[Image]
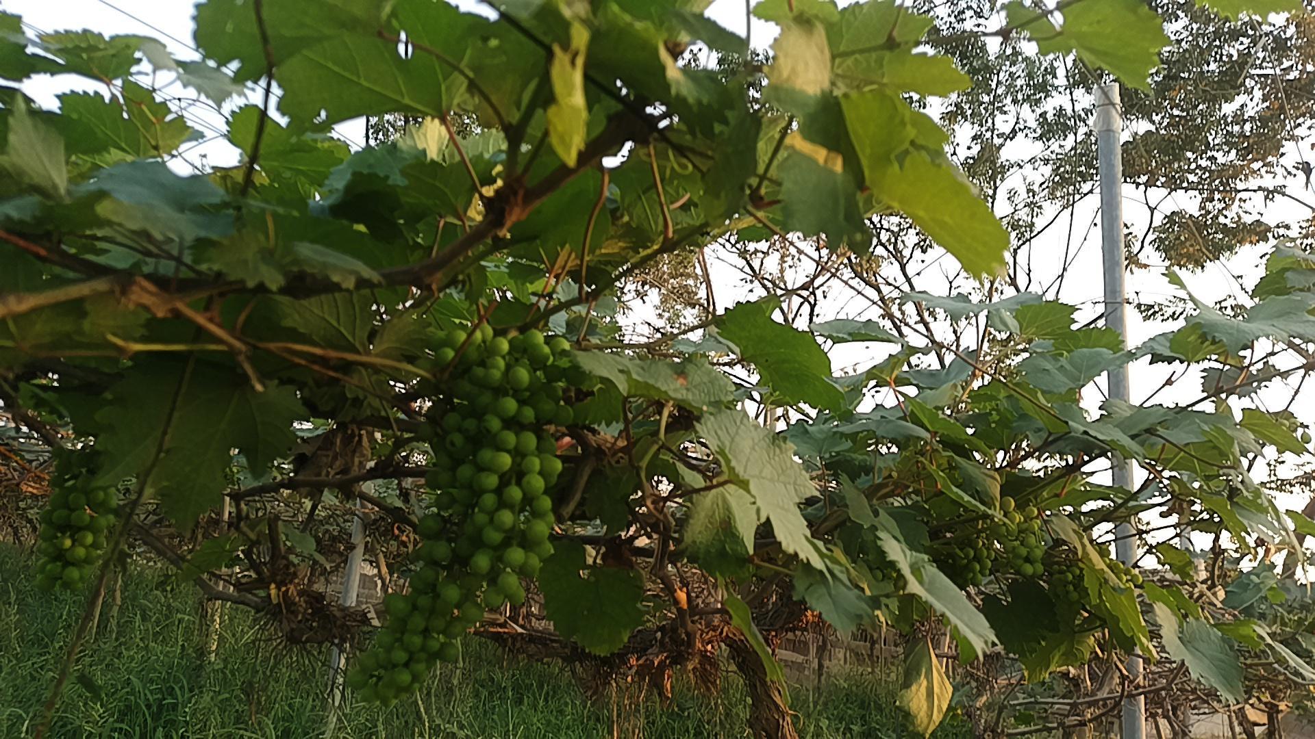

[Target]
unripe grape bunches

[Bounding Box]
[1092,546,1143,588]
[947,537,993,586]
[1050,565,1086,601]
[349,323,573,703]
[997,497,1044,577]
[37,450,119,591]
